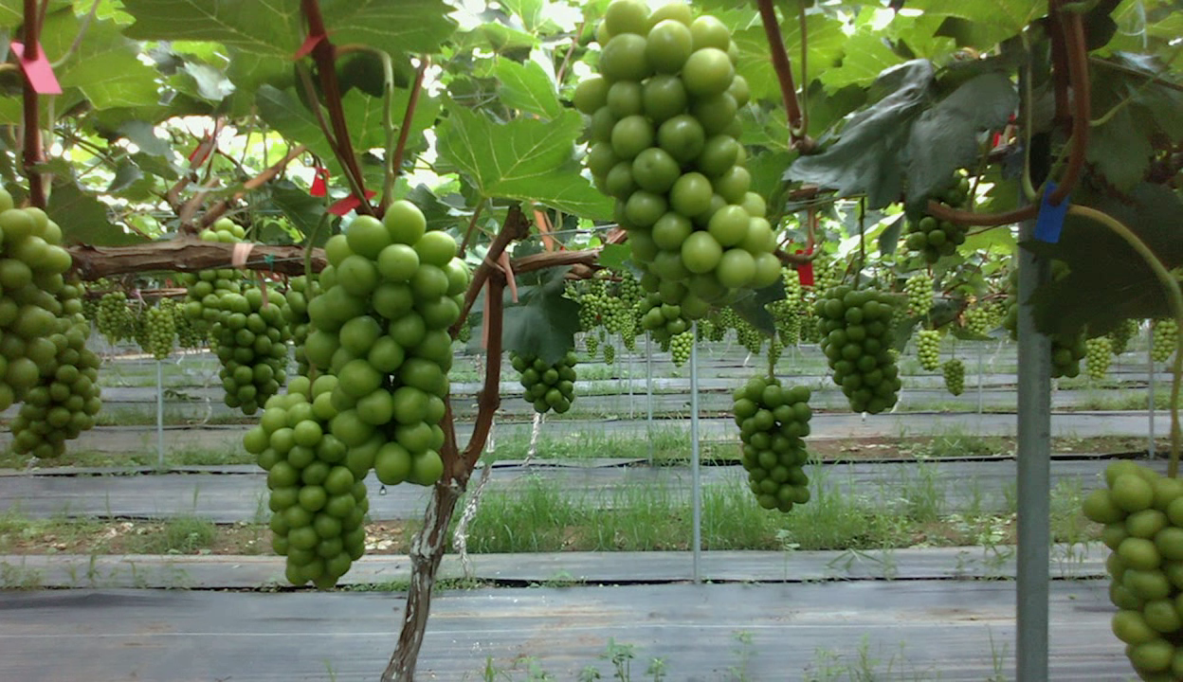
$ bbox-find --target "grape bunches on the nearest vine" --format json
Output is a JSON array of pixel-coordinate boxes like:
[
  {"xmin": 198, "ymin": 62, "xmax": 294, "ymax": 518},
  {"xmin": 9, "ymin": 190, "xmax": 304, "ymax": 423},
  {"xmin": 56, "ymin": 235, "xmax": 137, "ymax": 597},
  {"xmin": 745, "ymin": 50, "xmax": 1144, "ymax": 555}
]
[
  {"xmin": 572, "ymin": 1, "xmax": 782, "ymax": 321},
  {"xmin": 302, "ymin": 199, "xmax": 470, "ymax": 487},
  {"xmin": 1081, "ymin": 459, "xmax": 1182, "ymax": 681},
  {"xmin": 241, "ymin": 375, "xmax": 369, "ymax": 589},
  {"xmin": 0, "ymin": 186, "xmax": 72, "ymax": 413}
]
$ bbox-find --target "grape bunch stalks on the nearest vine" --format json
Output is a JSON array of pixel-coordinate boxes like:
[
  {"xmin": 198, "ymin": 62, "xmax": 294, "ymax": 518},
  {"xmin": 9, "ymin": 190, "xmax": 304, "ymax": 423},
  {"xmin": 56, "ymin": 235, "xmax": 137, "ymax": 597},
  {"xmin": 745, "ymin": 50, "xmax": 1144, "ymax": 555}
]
[
  {"xmin": 1065, "ymin": 204, "xmax": 1182, "ymax": 478},
  {"xmin": 334, "ymin": 42, "xmax": 399, "ymax": 211}
]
